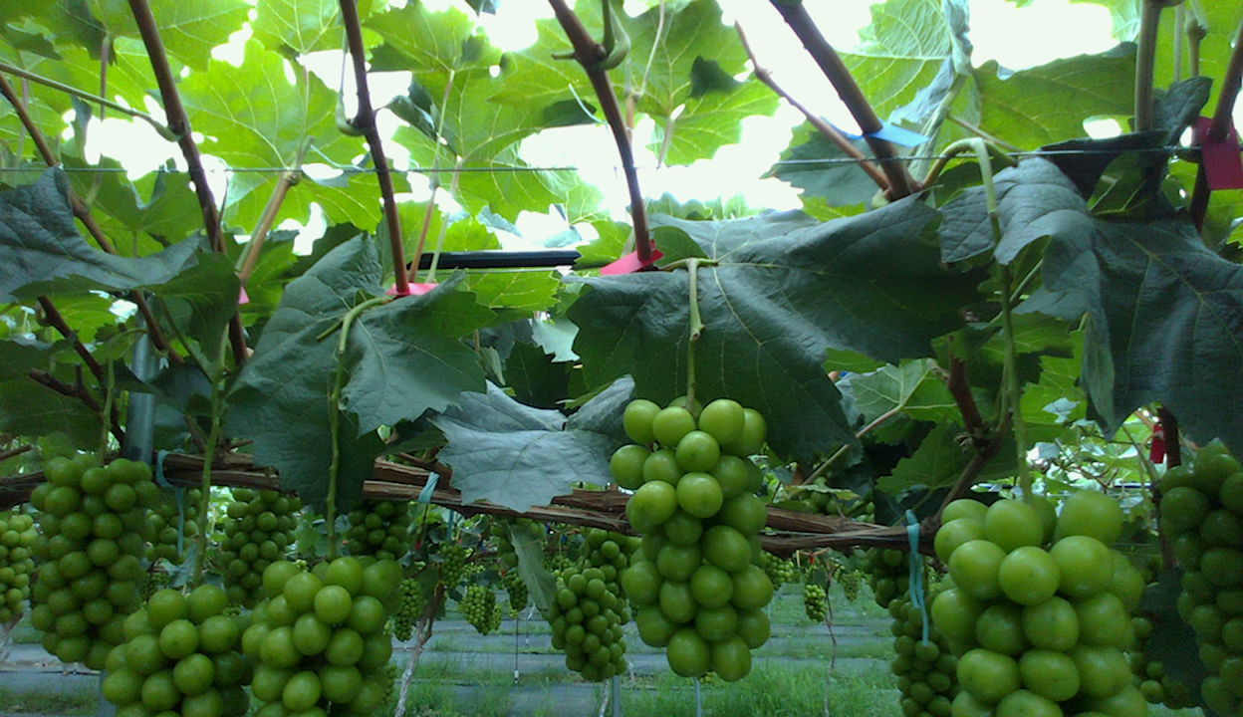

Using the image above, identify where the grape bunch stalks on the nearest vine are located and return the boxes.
[193,325,228,589]
[97,327,149,466]
[659,257,700,418]
[326,296,391,562]
[942,136,1035,508]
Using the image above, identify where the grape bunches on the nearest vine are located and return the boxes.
[931,489,1148,716]
[608,396,773,683]
[241,556,404,716]
[103,586,249,716]
[30,453,158,670]
[1158,443,1242,715]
